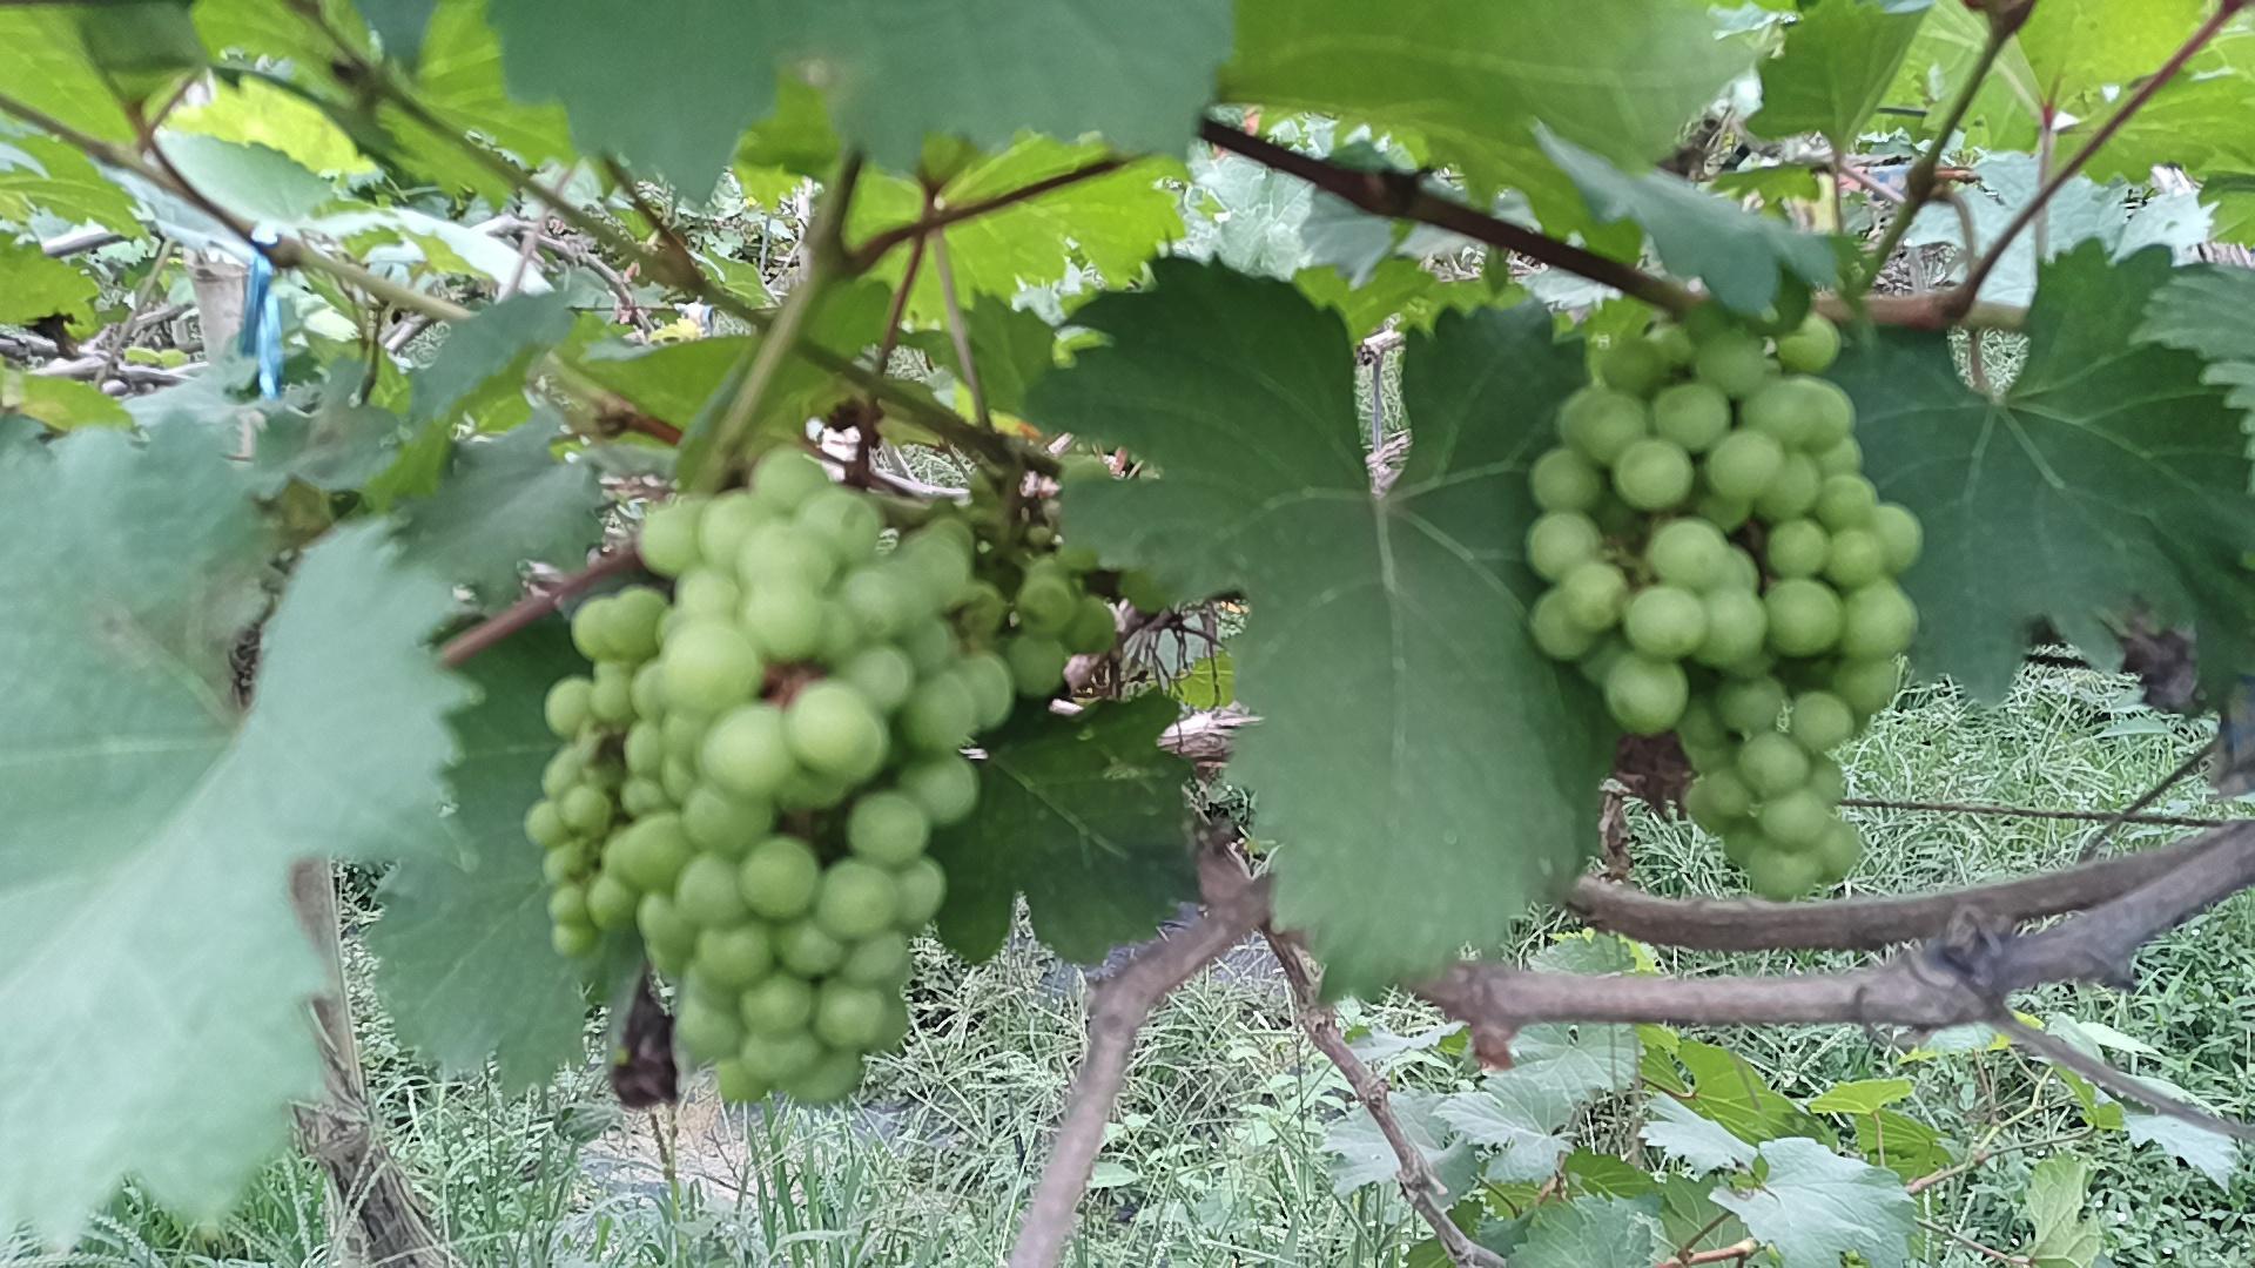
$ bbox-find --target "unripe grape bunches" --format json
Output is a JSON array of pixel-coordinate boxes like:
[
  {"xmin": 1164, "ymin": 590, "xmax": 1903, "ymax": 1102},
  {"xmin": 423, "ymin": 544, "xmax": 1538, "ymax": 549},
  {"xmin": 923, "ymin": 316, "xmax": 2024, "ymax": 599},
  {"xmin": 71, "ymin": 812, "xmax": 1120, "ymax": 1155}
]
[
  {"xmin": 1527, "ymin": 299, "xmax": 1920, "ymax": 899},
  {"xmin": 524, "ymin": 450, "xmax": 1112, "ymax": 1105}
]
